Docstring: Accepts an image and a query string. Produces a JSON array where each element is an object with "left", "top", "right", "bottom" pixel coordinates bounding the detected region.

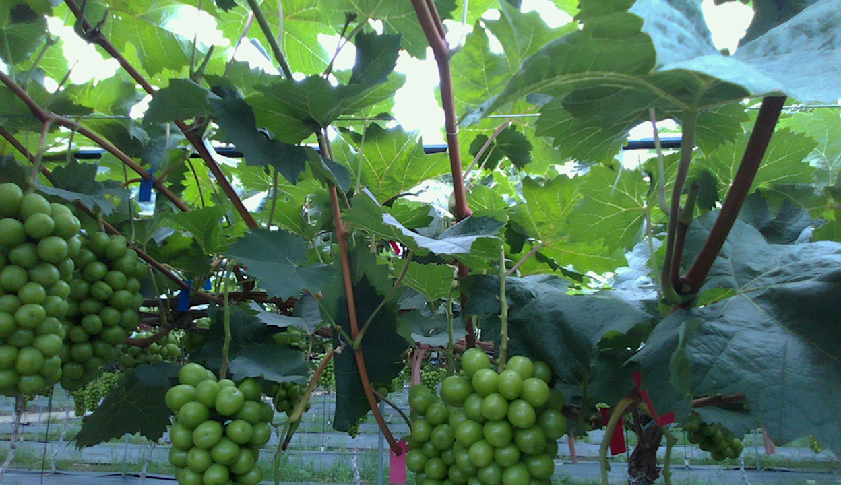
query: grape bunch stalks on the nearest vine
[
  {"left": 220, "top": 261, "right": 236, "bottom": 379},
  {"left": 495, "top": 243, "right": 507, "bottom": 371},
  {"left": 28, "top": 121, "right": 48, "bottom": 193},
  {"left": 447, "top": 290, "right": 456, "bottom": 377}
]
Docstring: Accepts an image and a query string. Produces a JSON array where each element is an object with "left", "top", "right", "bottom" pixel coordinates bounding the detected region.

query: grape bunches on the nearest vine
[
  {"left": 0, "top": 184, "right": 80, "bottom": 396},
  {"left": 443, "top": 347, "right": 566, "bottom": 484},
  {"left": 60, "top": 232, "right": 148, "bottom": 391},
  {"left": 165, "top": 363, "right": 274, "bottom": 484},
  {"left": 404, "top": 385, "right": 466, "bottom": 484}
]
